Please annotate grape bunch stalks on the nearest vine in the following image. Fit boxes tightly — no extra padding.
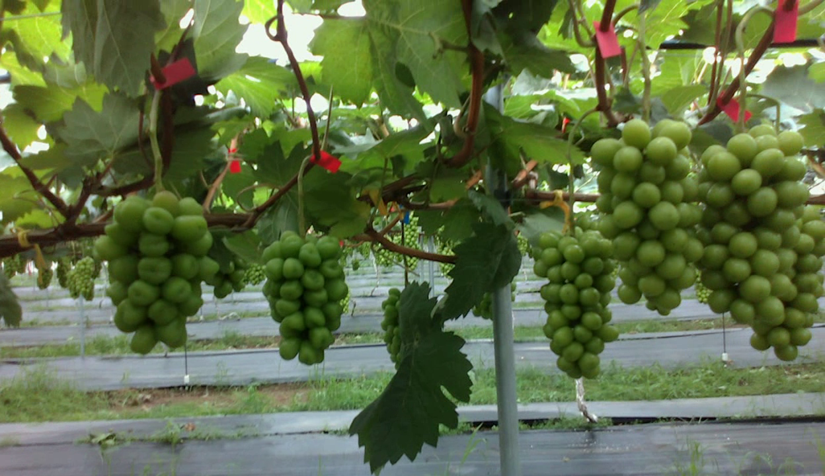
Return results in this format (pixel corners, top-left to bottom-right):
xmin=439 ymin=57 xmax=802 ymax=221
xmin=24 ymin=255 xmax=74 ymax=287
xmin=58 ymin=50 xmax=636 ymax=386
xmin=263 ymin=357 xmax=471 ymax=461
xmin=567 ymin=108 xmax=592 ymax=237
xmin=734 ymin=5 xmax=767 ymax=131
xmin=297 ymin=157 xmax=307 ymax=239
xmin=149 ymin=91 xmax=163 ymax=190
xmin=636 ymin=12 xmax=650 ymax=122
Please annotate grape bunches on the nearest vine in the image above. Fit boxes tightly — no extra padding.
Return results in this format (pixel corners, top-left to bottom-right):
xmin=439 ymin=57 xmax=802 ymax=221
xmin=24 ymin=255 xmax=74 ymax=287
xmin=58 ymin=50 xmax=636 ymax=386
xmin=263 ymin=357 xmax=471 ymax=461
xmin=748 ymin=206 xmax=824 ymax=362
xmin=534 ymin=214 xmax=617 ymax=379
xmin=94 ymin=191 xmax=217 ymax=355
xmin=695 ymin=125 xmax=810 ymax=324
xmin=592 ymin=116 xmax=705 ymax=315
xmin=263 ymin=231 xmax=350 ymax=366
